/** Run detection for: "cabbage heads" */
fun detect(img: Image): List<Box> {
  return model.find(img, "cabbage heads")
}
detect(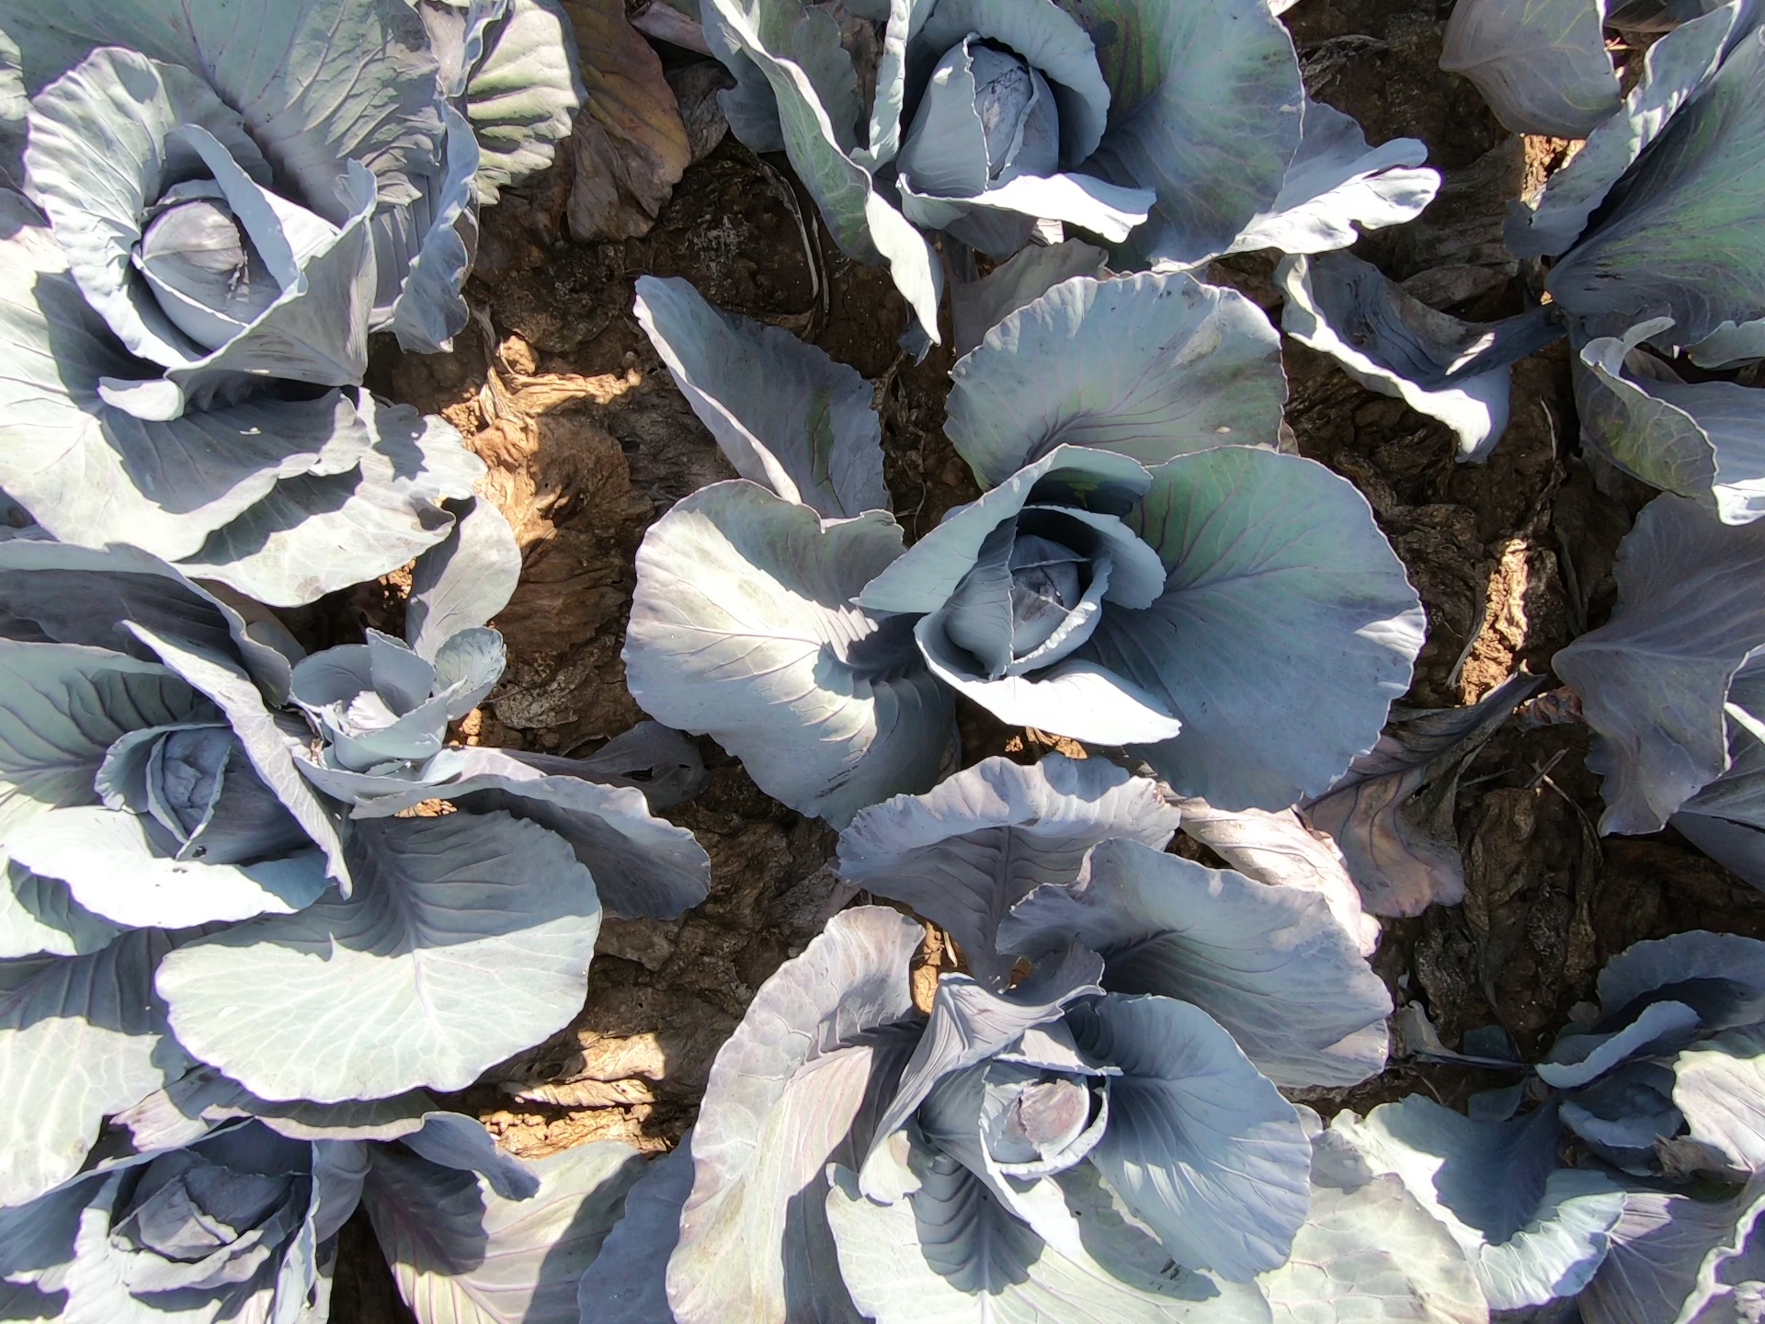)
[132,1090,330,1264]
[145,185,343,362]
[926,1021,1094,1168]
[959,539,1089,660]
[1594,1193,1760,1323]
[145,702,307,846]
[919,40,1058,196]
